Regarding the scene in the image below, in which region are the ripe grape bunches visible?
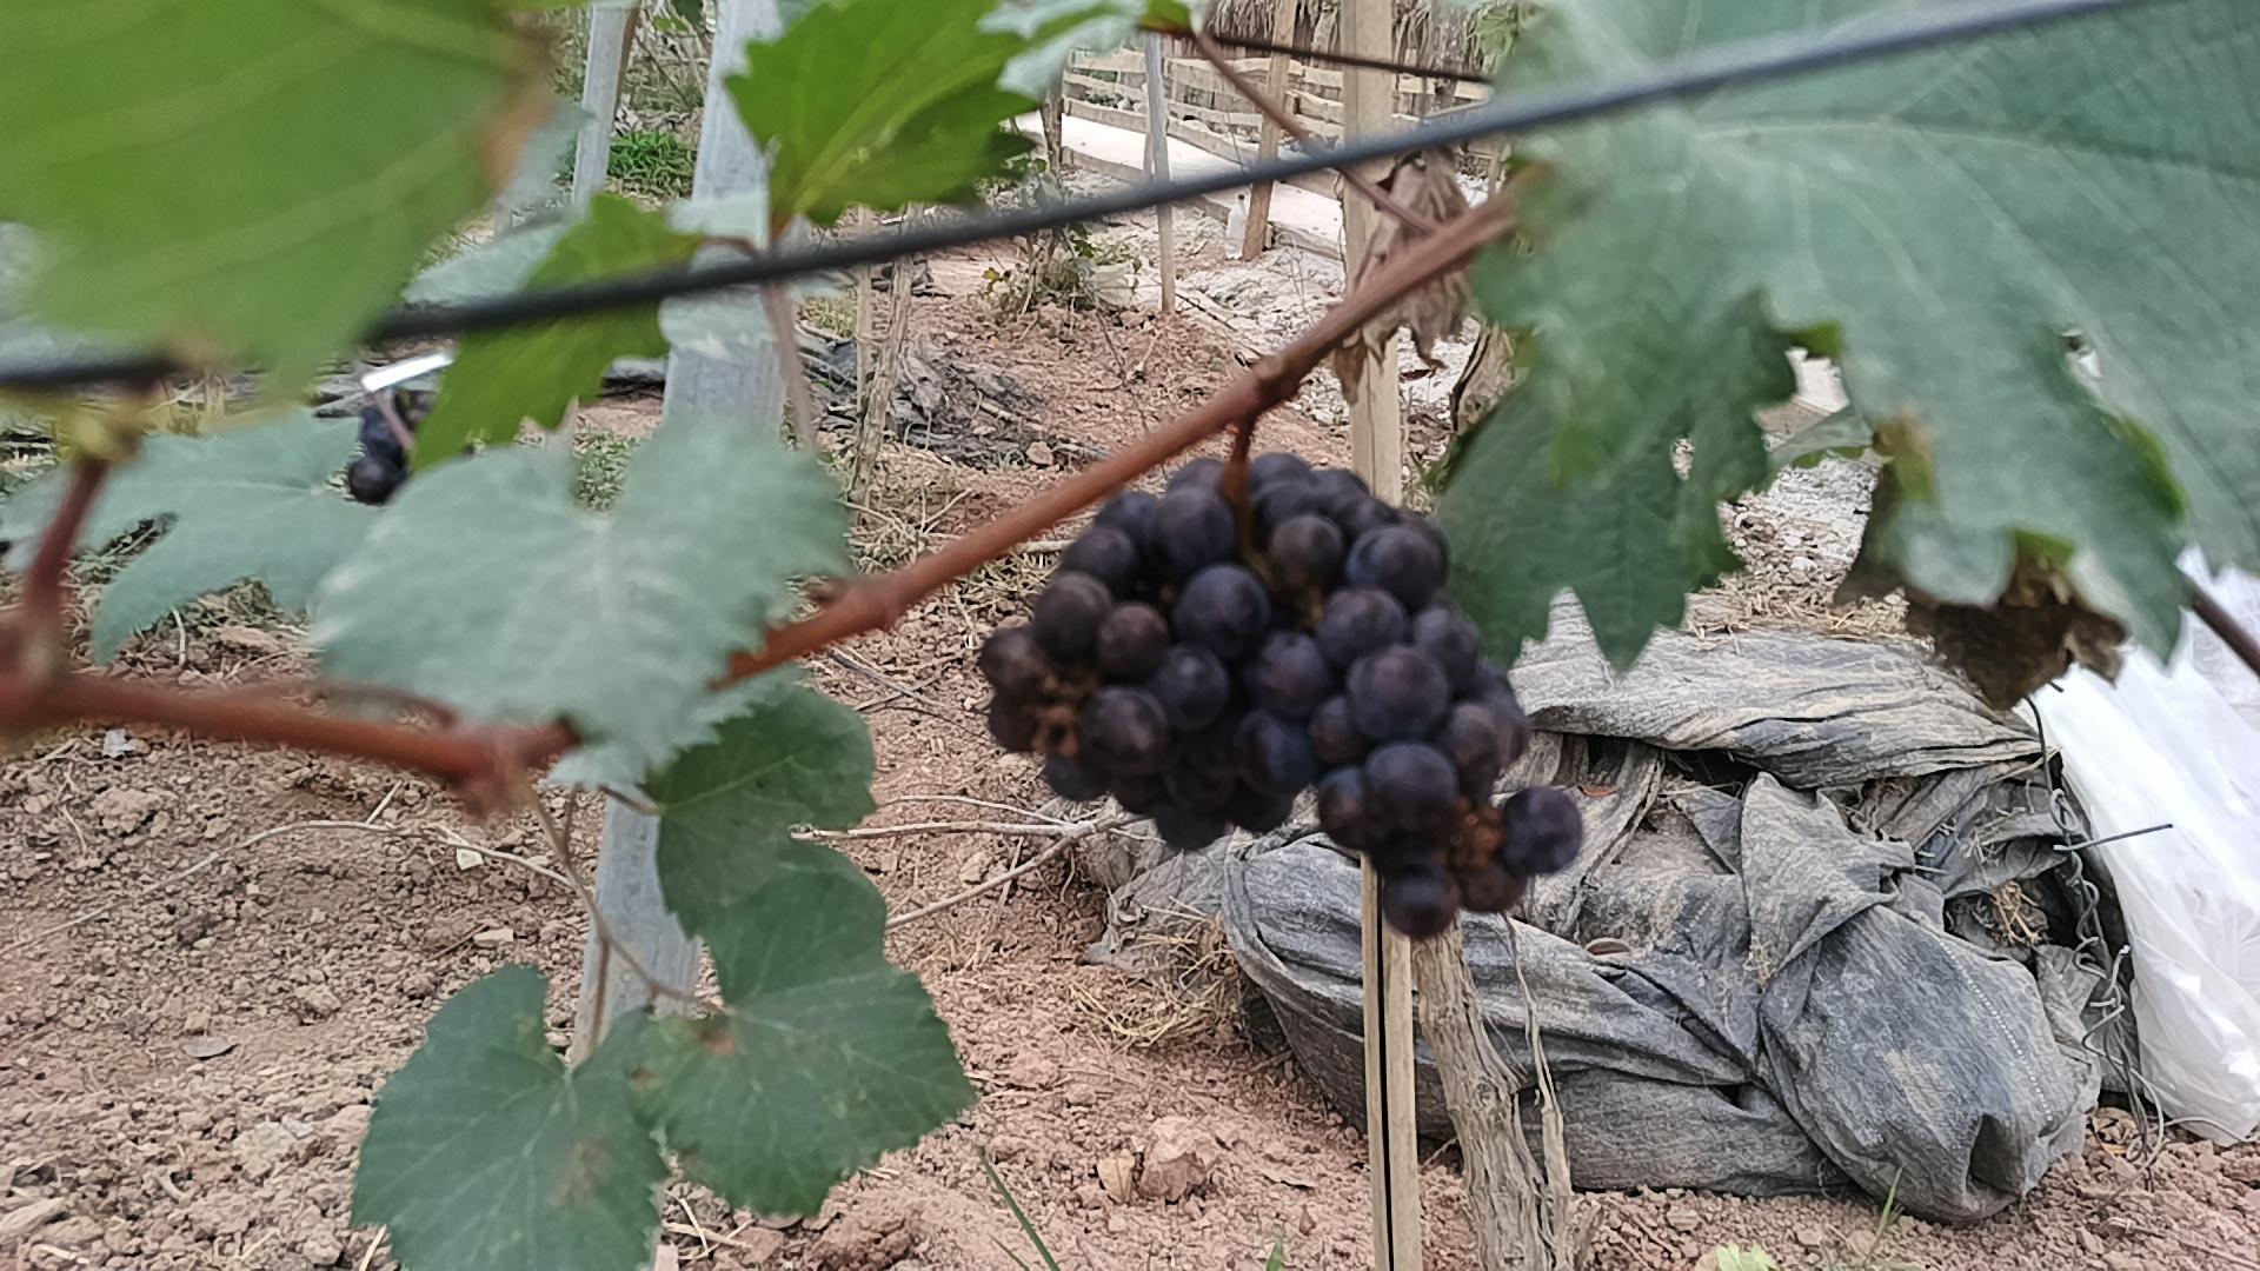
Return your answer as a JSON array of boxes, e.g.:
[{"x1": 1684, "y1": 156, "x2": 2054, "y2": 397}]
[
  {"x1": 978, "y1": 453, "x2": 1582, "y2": 937},
  {"x1": 344, "y1": 384, "x2": 432, "y2": 505}
]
